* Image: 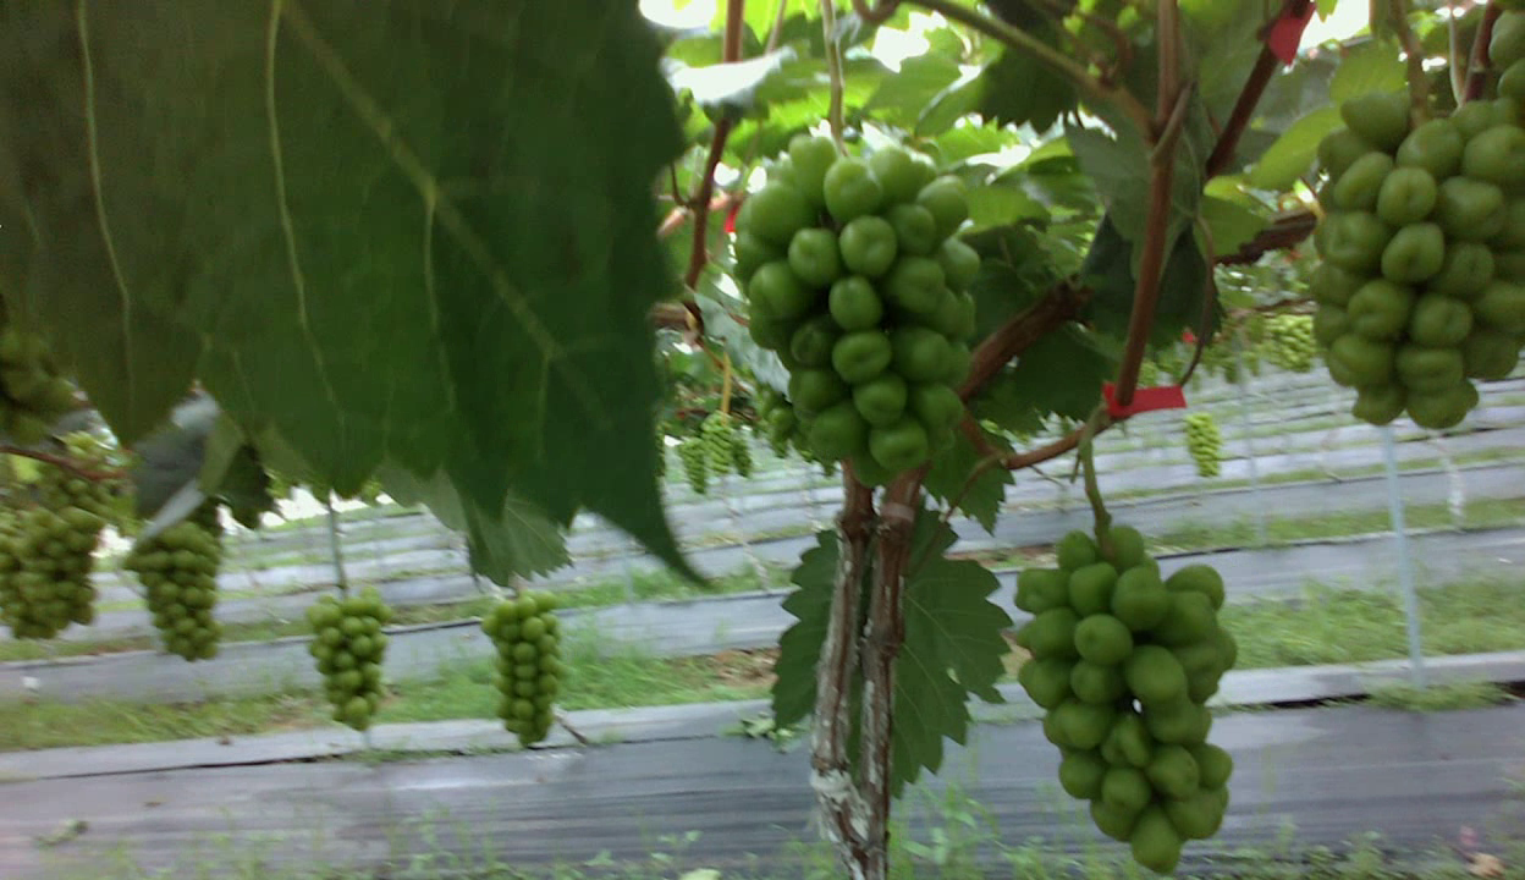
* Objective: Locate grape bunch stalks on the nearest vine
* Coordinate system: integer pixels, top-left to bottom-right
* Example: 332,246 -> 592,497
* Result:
1388,0 -> 1433,127
1073,408 -> 1117,560
819,0 -> 846,154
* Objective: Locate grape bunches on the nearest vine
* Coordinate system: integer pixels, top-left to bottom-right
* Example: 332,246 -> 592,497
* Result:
1301,92 -> 1524,429
734,136 -> 980,486
1013,523 -> 1235,876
